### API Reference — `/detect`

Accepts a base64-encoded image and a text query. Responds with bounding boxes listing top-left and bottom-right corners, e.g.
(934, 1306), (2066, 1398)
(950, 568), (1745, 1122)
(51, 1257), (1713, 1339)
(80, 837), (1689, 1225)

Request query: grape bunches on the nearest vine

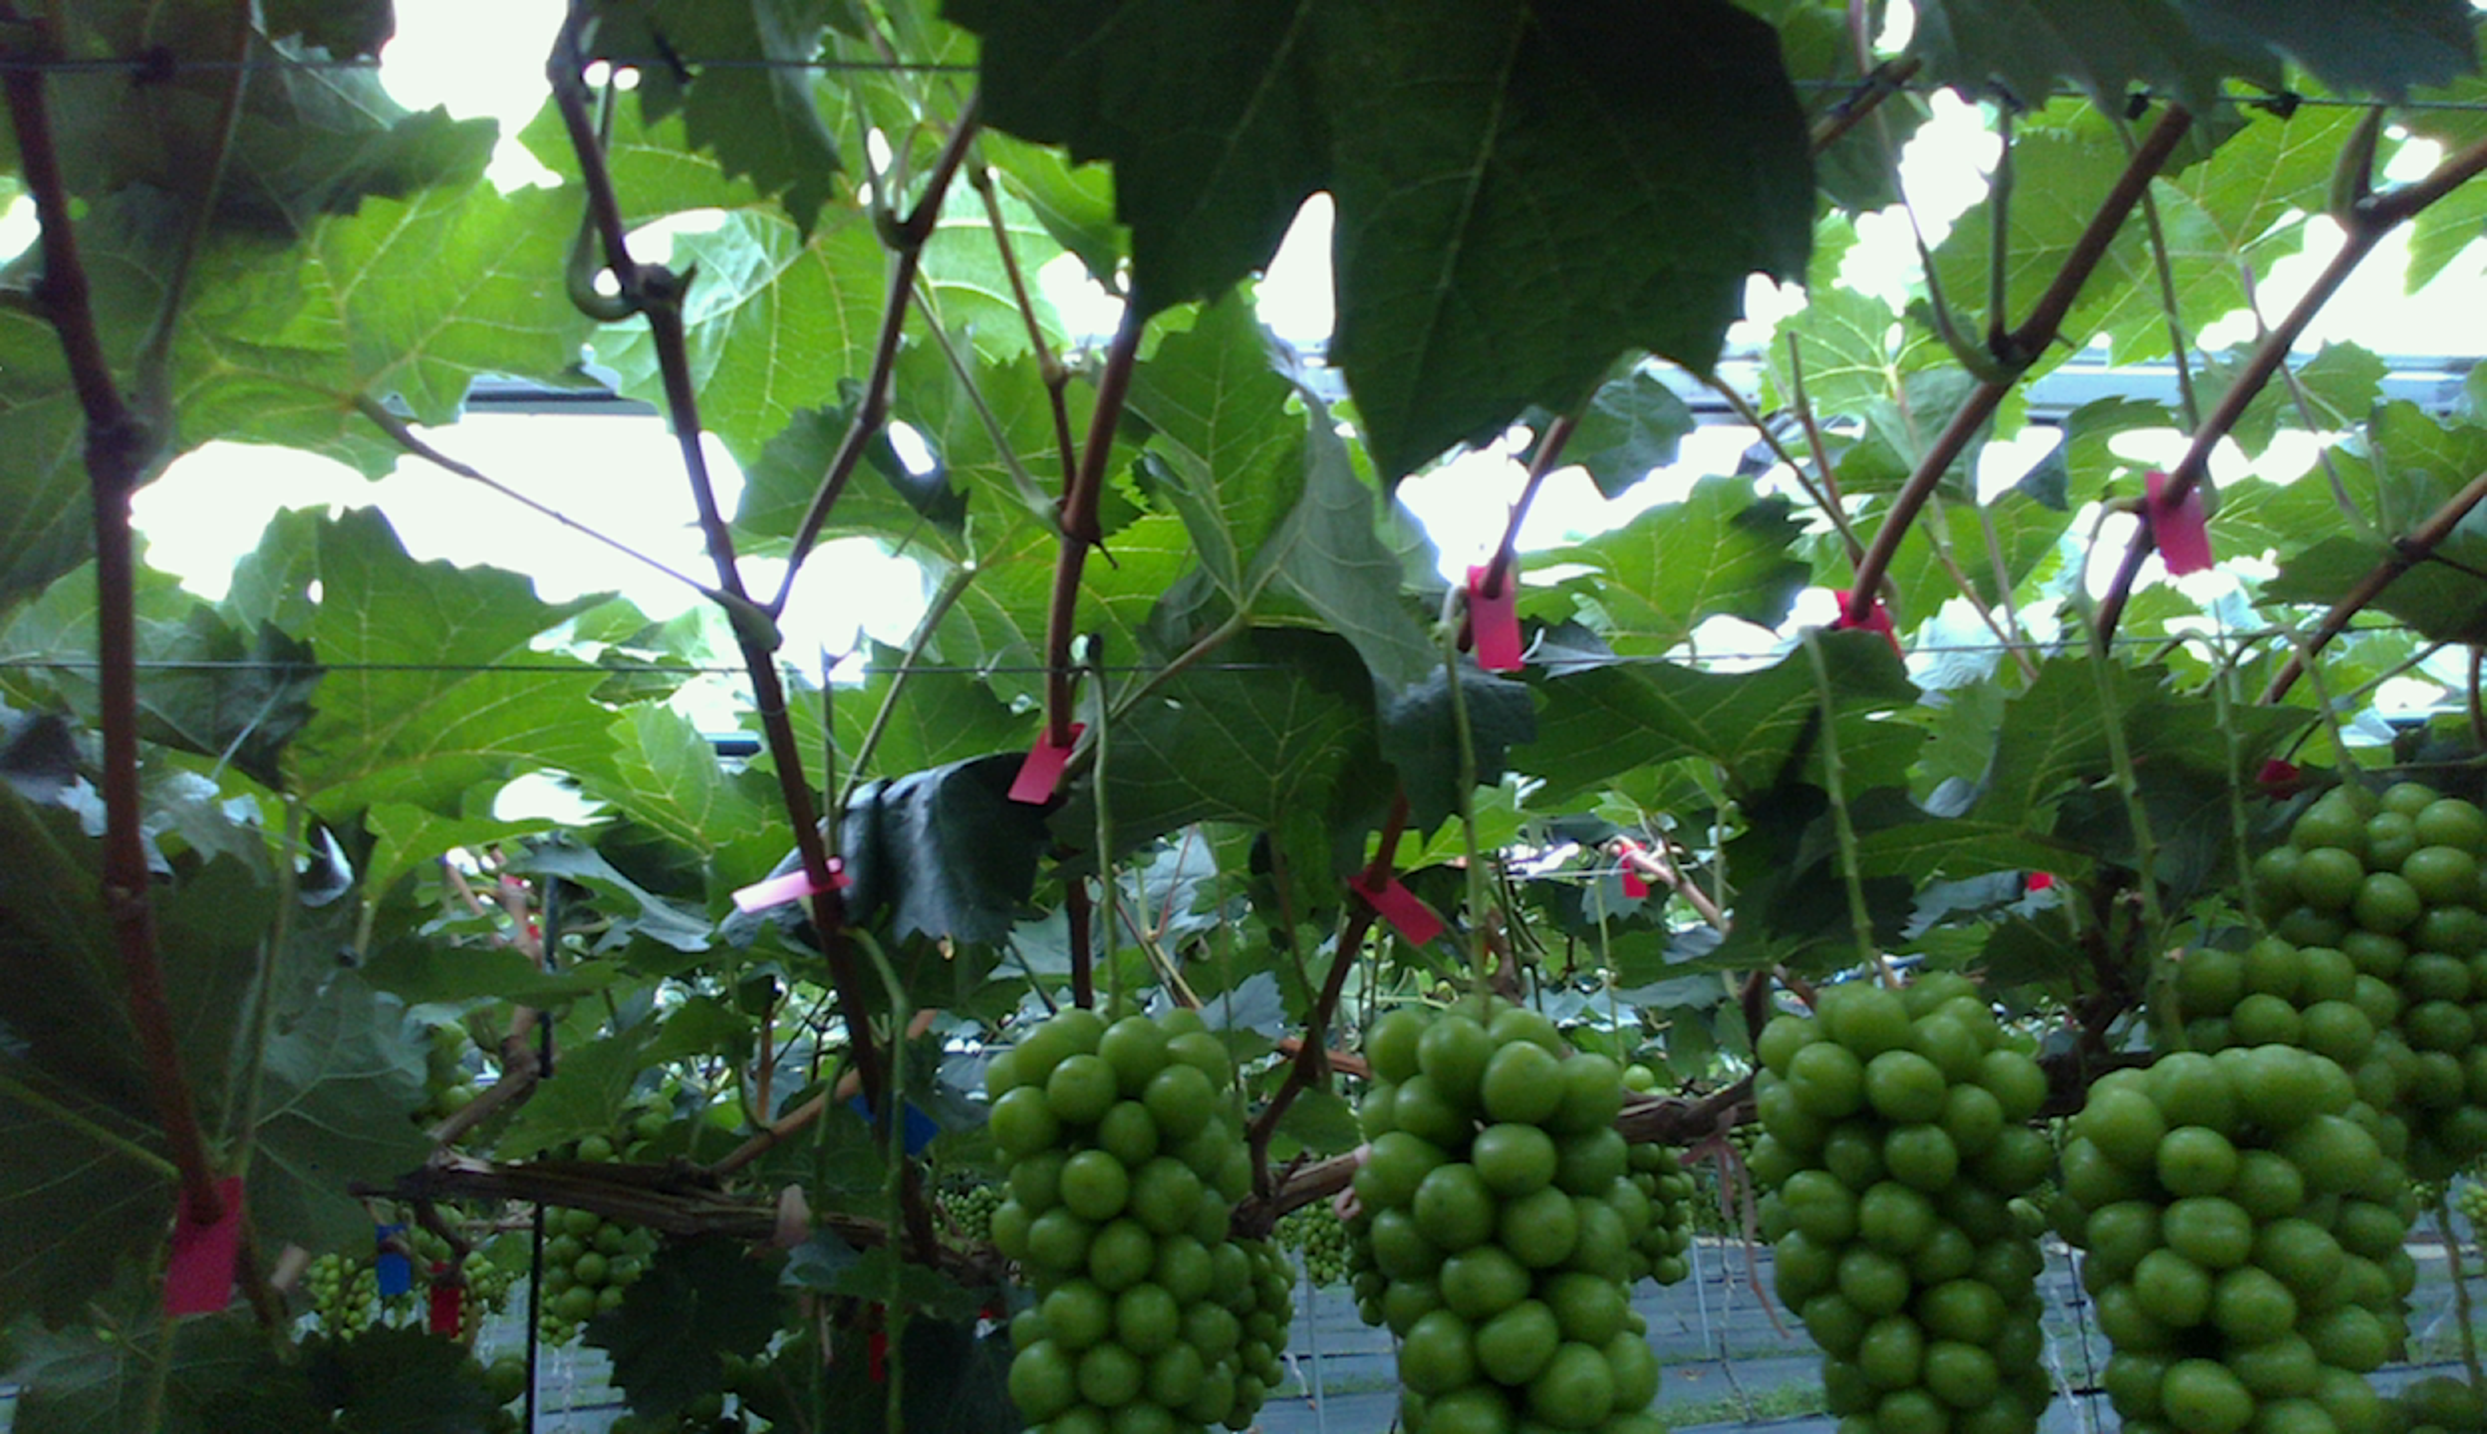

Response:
(1353, 994), (1672, 1432)
(1736, 972), (2055, 1432)
(2176, 934), (2421, 1153)
(2047, 1044), (2423, 1432)
(976, 1004), (1255, 1432)
(2256, 785), (2485, 1181)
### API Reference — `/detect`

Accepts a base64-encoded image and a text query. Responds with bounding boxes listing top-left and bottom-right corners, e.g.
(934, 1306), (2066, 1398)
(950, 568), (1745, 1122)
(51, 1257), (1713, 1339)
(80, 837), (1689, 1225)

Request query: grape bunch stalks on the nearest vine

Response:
(1094, 661), (1122, 1020)
(1803, 627), (1873, 976)
(2274, 623), (2371, 866)
(2180, 629), (2258, 940)
(1435, 580), (1489, 1024)
(2057, 496), (2190, 1050)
